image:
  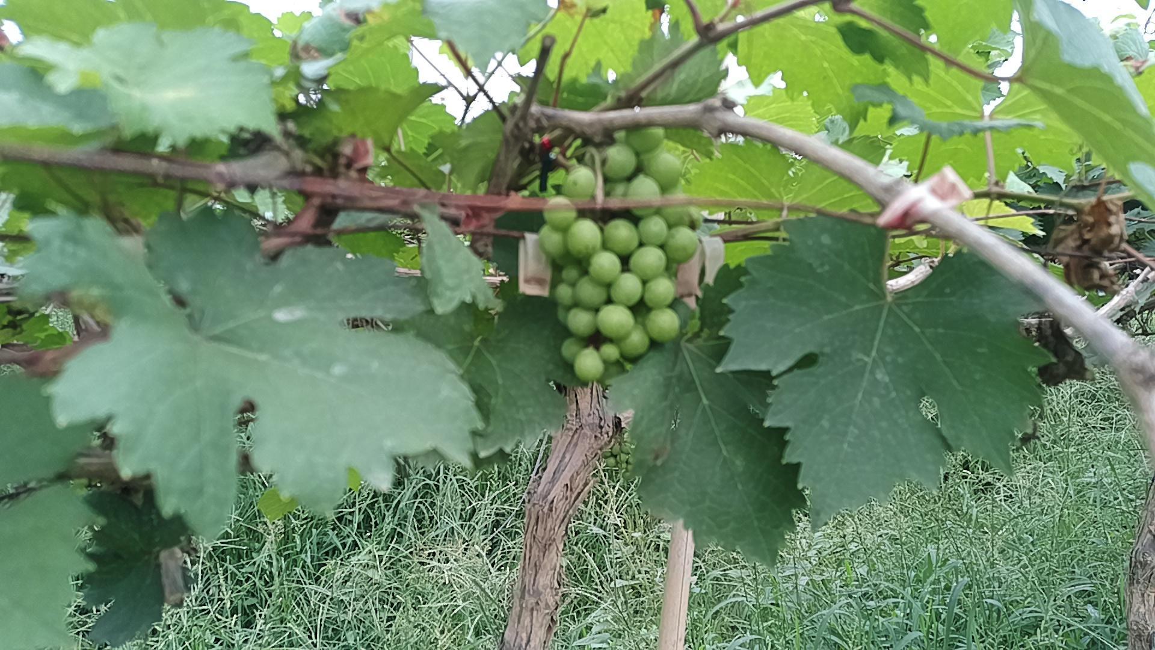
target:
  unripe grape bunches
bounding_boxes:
[537,129,701,383]
[603,439,632,479]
